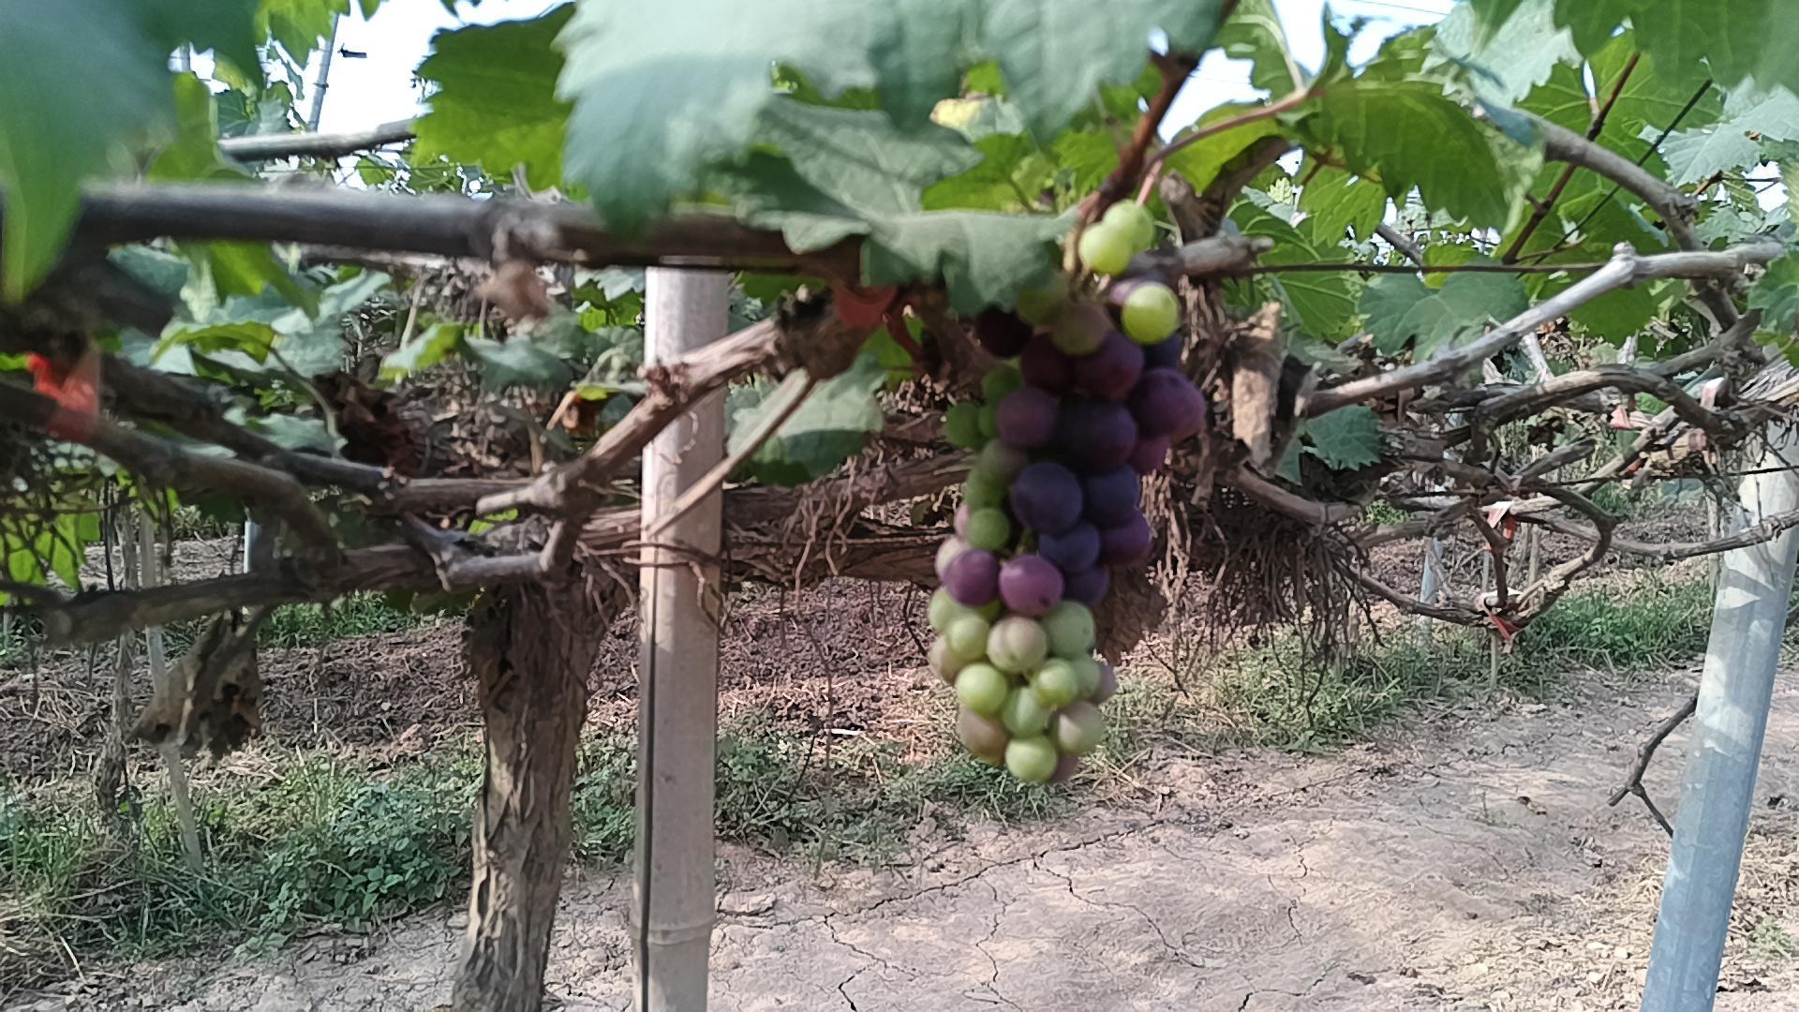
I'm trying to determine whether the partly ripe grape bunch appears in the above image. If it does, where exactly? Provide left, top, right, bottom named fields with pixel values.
left=928, top=198, right=1204, bottom=782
